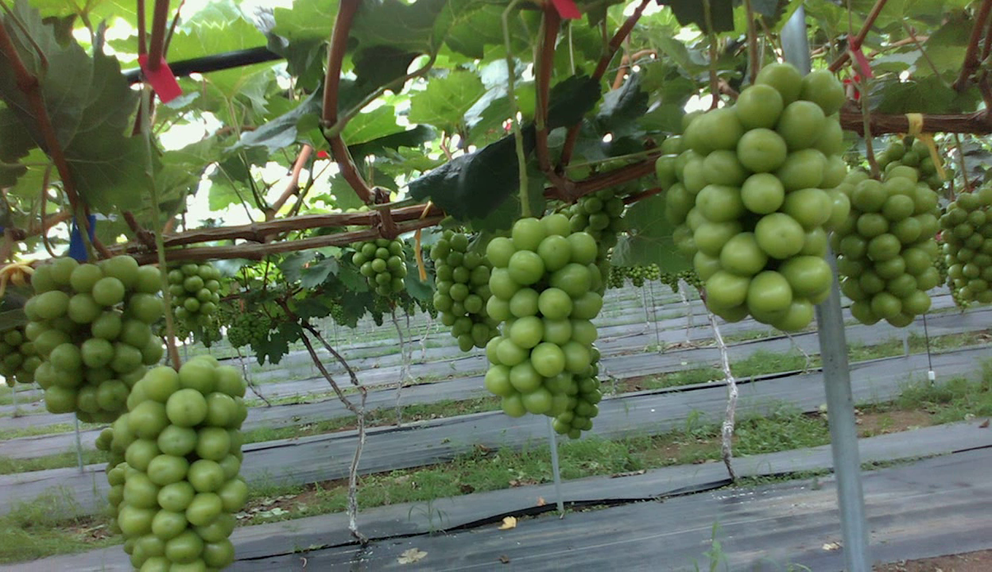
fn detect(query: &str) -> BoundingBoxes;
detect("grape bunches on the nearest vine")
[828,166,941,327]
[484,214,603,418]
[653,109,705,255]
[111,354,247,571]
[23,255,162,424]
[684,64,850,333]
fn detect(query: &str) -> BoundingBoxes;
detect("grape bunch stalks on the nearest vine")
[743,1,758,82]
[703,1,721,106]
[500,1,531,218]
[851,52,881,177]
[140,91,180,368]
[76,199,96,263]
